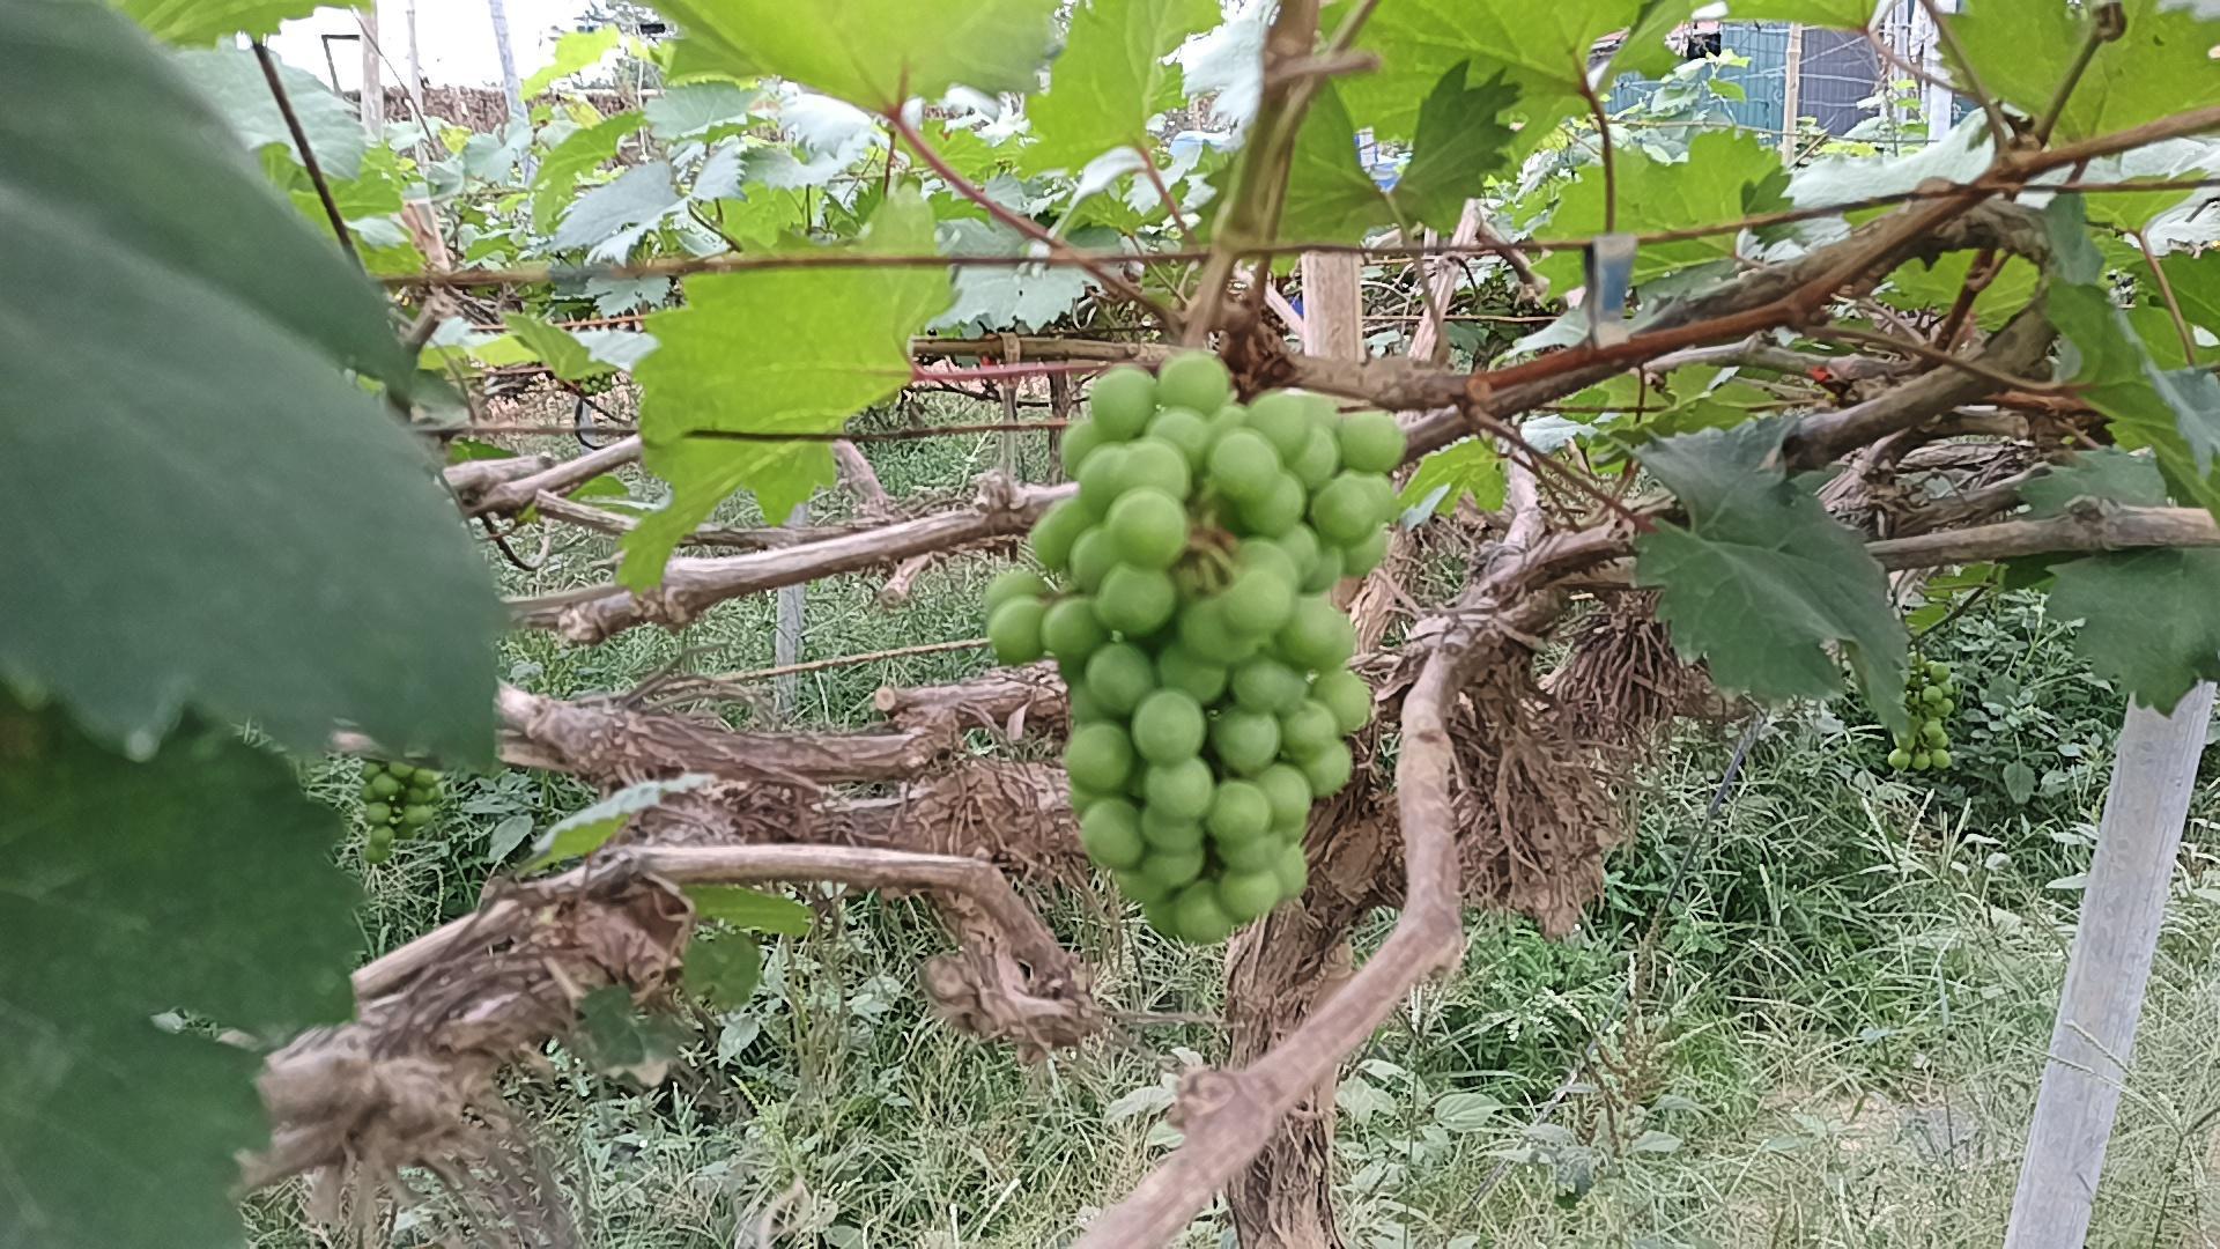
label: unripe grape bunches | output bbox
[360,753,444,864]
[989,350,1393,944]
[1887,652,1956,773]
